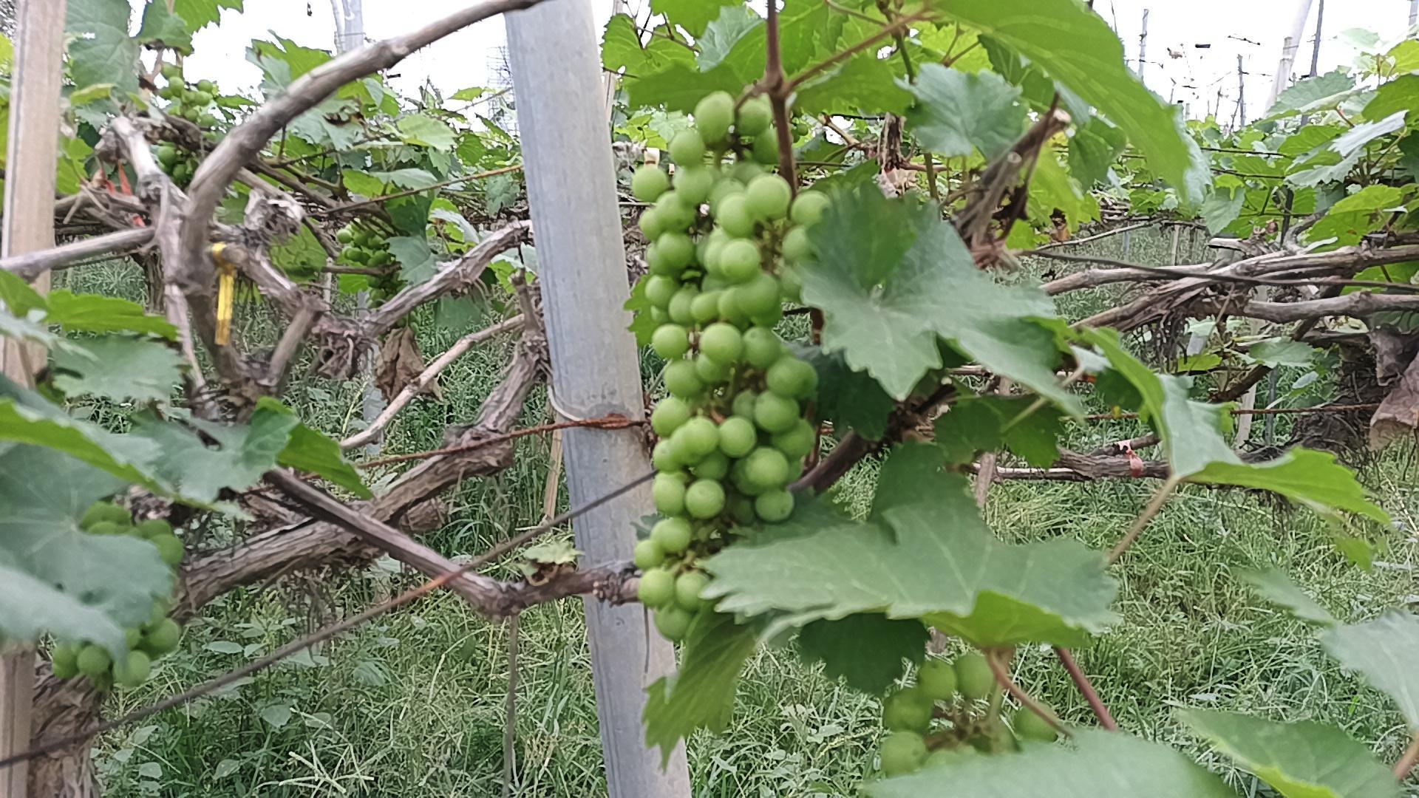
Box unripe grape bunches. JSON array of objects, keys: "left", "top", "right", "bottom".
[
  {"left": 151, "top": 49, "right": 214, "bottom": 187},
  {"left": 52, "top": 500, "right": 183, "bottom": 692},
  {"left": 627, "top": 91, "right": 828, "bottom": 635},
  {"left": 879, "top": 652, "right": 1059, "bottom": 775},
  {"left": 337, "top": 222, "right": 402, "bottom": 307}
]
